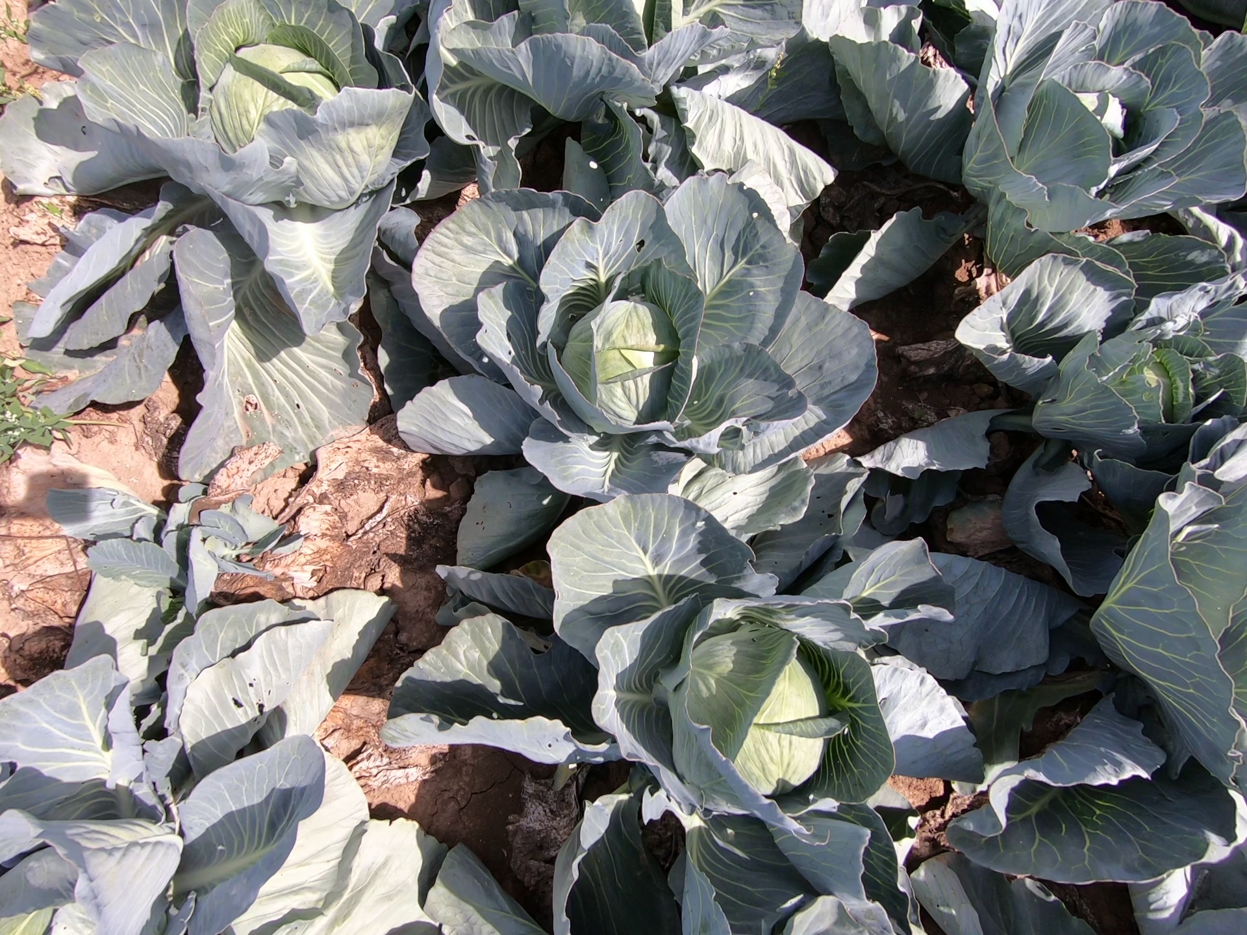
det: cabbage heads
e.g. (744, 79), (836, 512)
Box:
(1, 834), (162, 934)
(677, 625), (831, 798)
(202, 40), (356, 180)
(1100, 356), (1194, 426)
(1023, 86), (1127, 195)
(540, 1), (683, 76)
(559, 299), (690, 435)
